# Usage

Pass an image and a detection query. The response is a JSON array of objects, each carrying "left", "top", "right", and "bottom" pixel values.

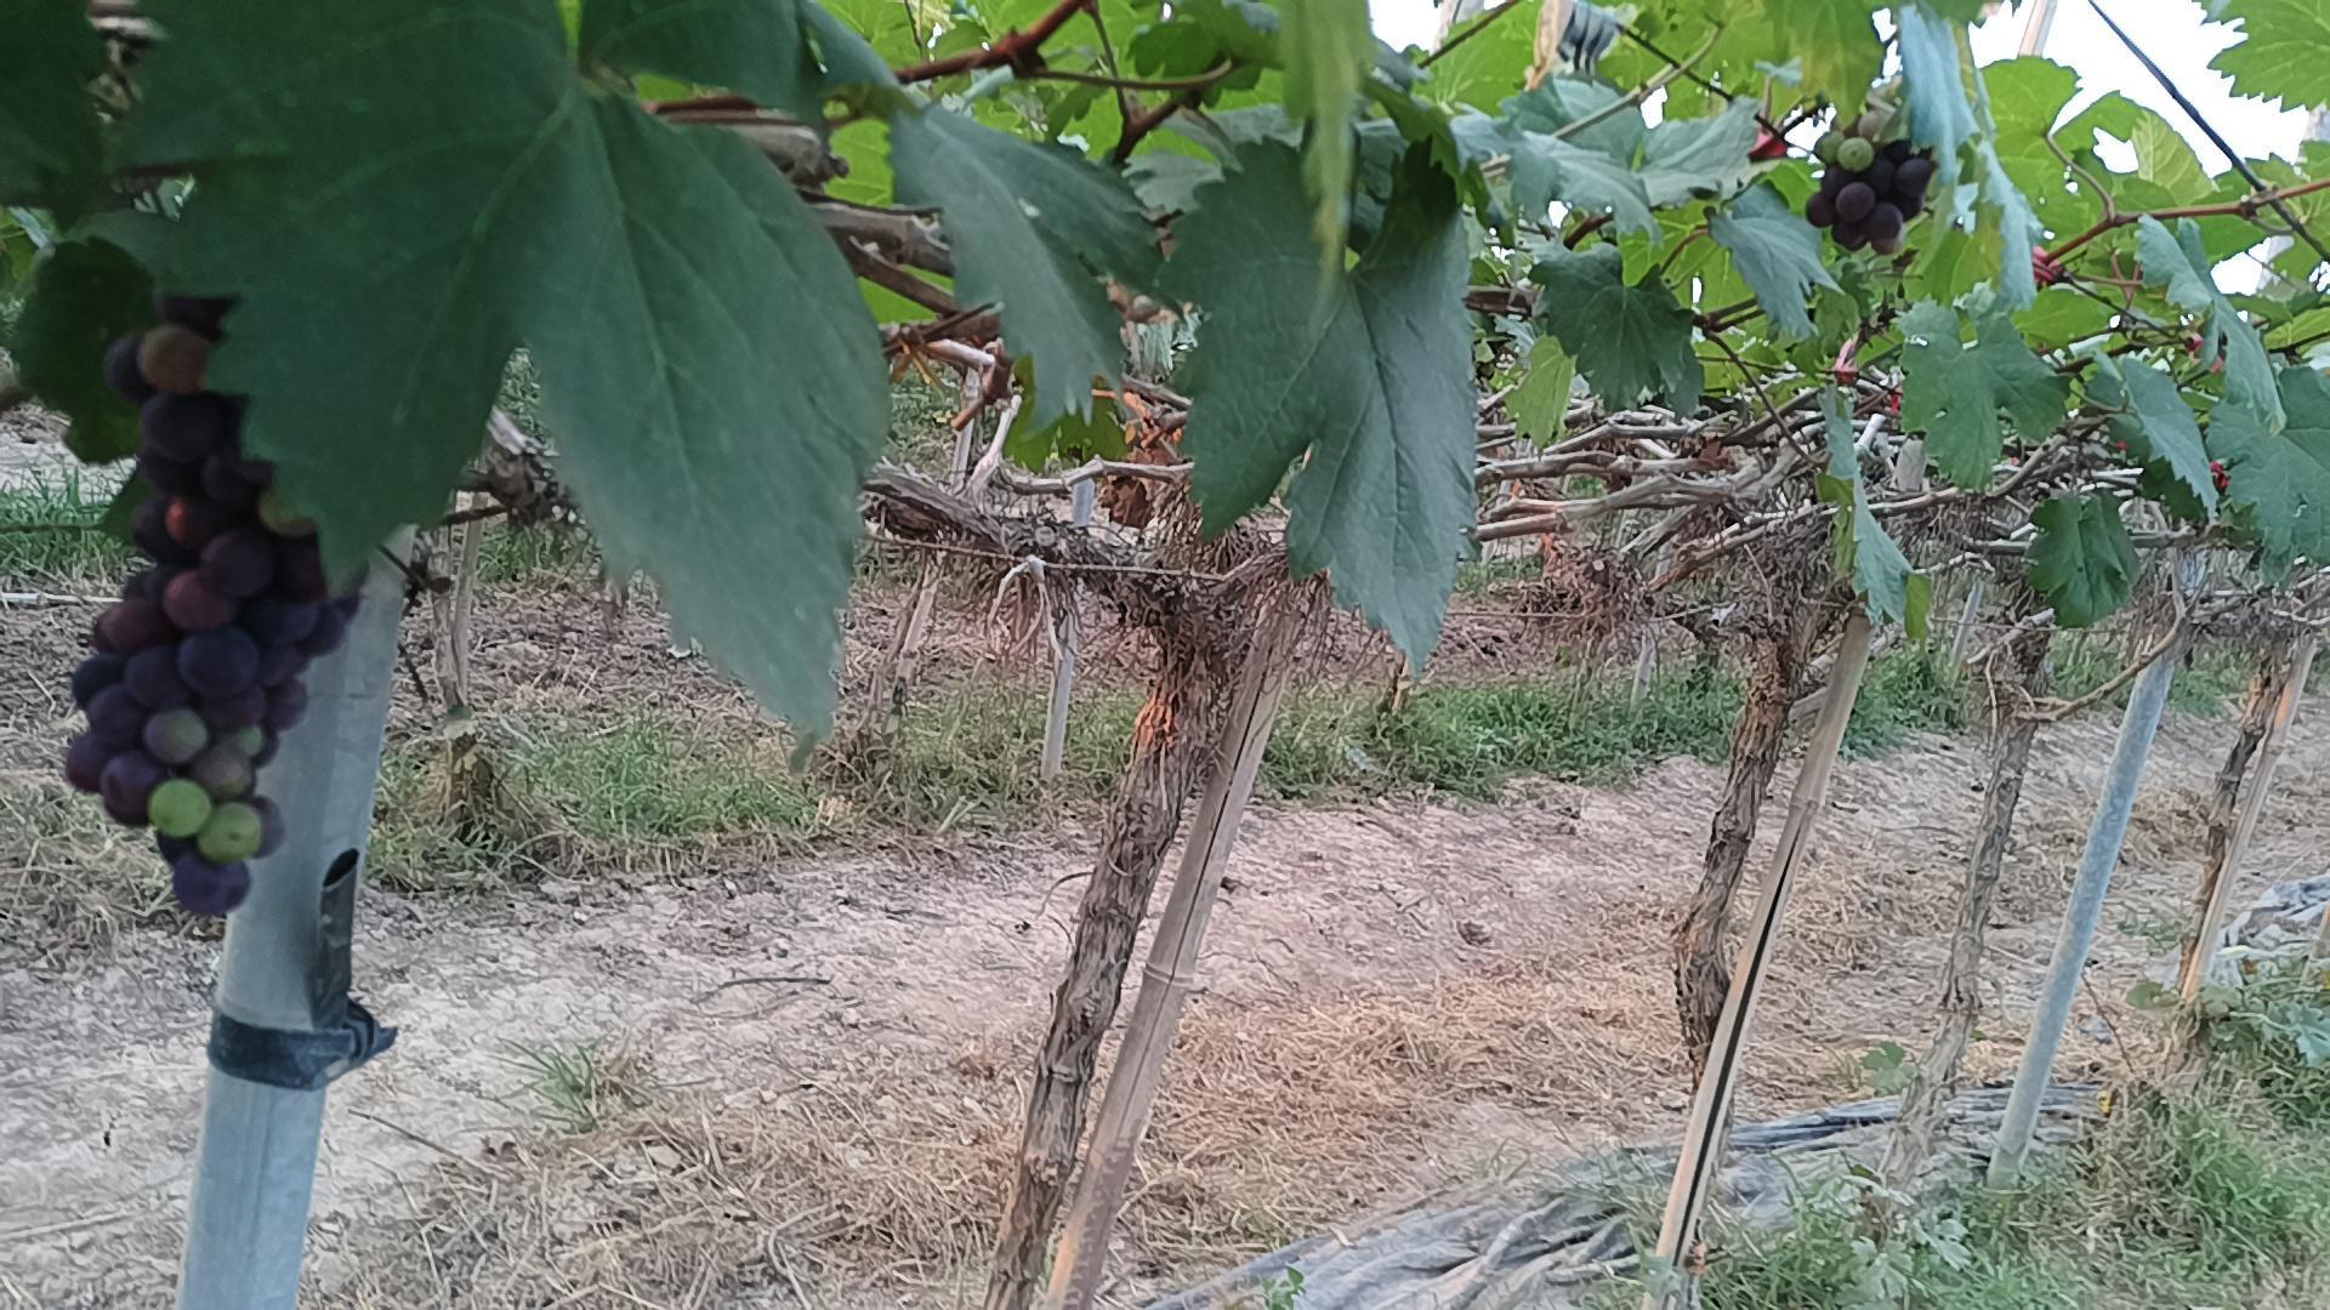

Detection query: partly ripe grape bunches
[
  {"left": 1803, "top": 69, "right": 1939, "bottom": 254},
  {"left": 66, "top": 297, "right": 359, "bottom": 917}
]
